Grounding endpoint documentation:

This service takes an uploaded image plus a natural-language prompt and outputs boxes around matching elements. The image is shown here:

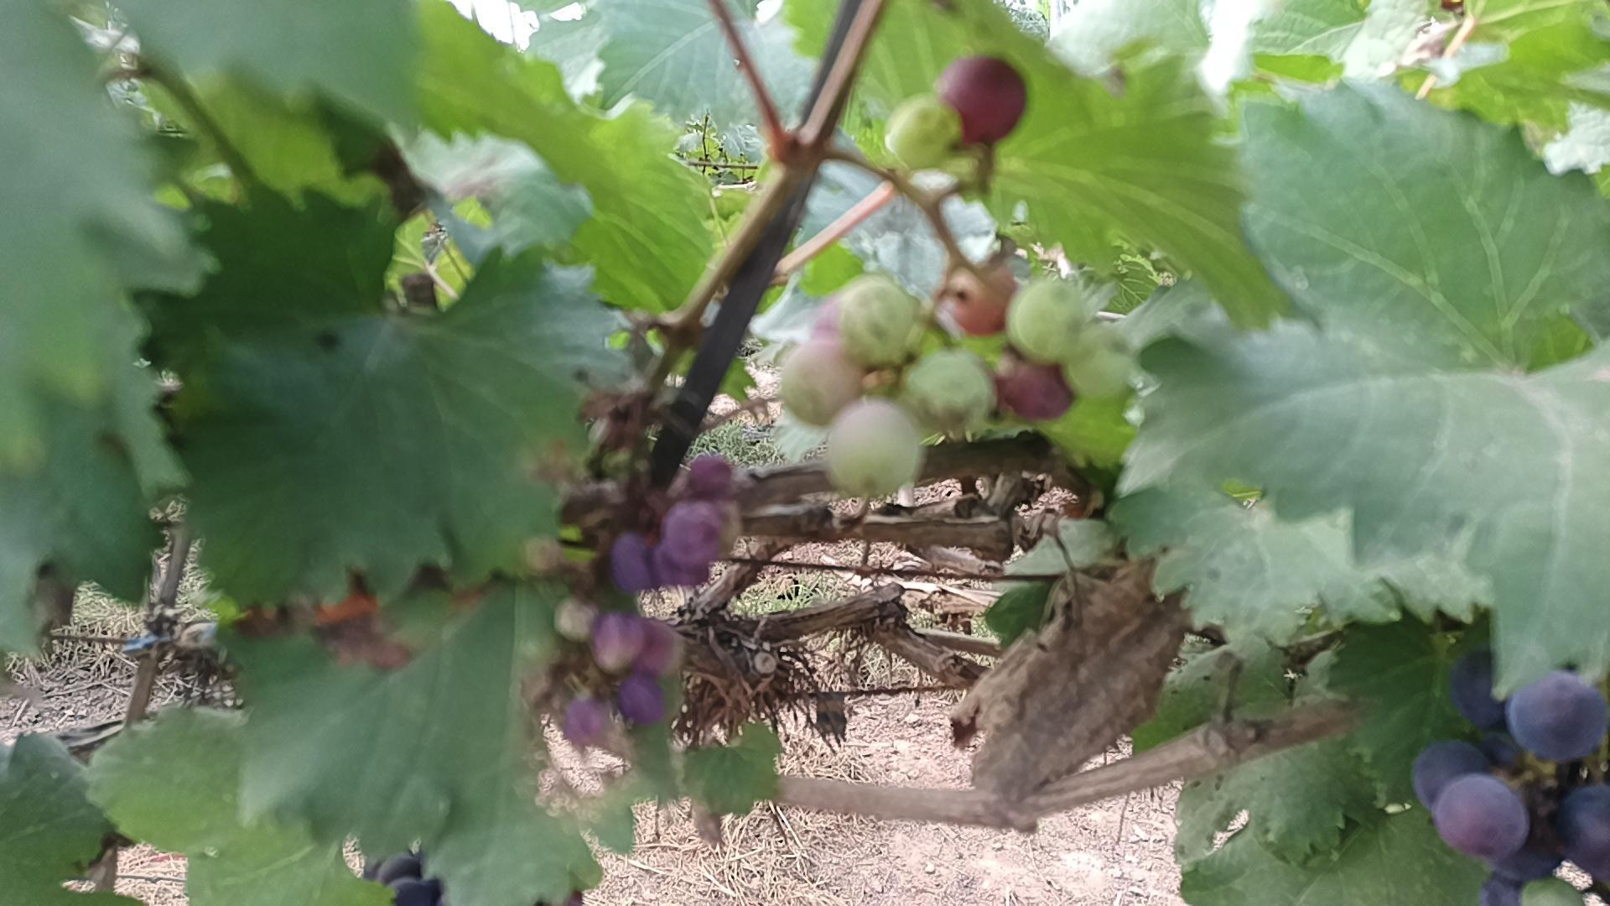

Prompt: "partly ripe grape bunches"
[554,596,683,747]
[605,455,742,595]
[780,56,1135,499]
[1414,644,1609,905]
